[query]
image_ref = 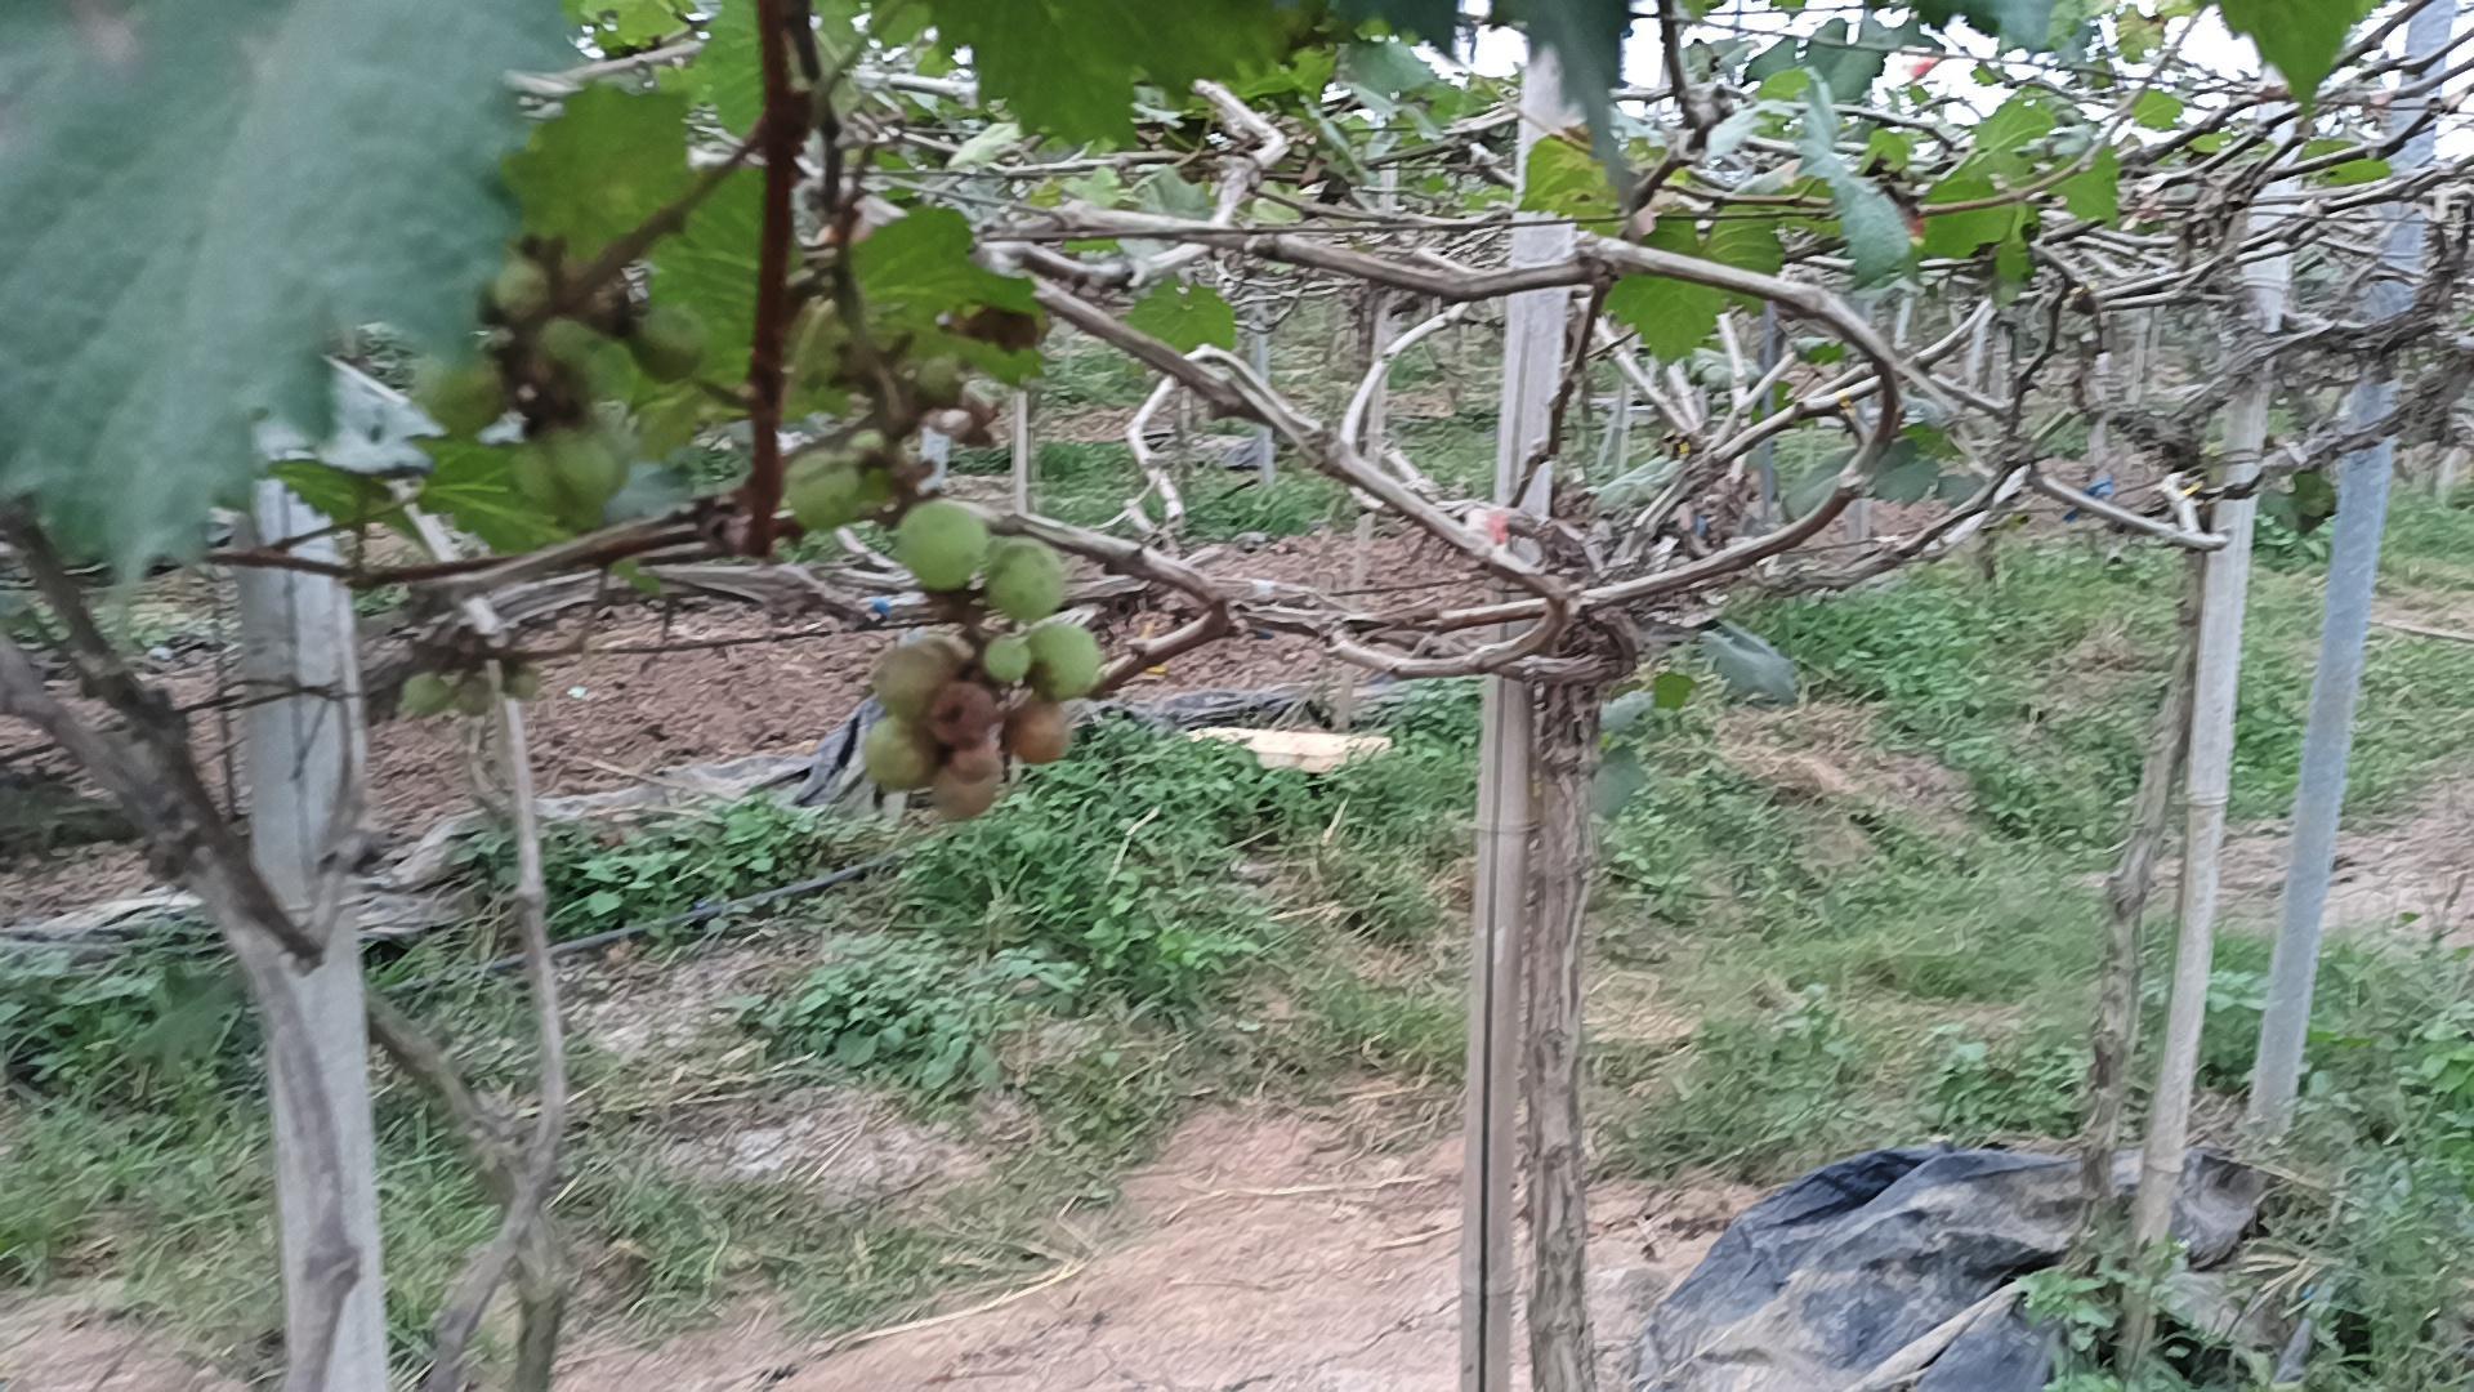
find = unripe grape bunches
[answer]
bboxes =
[398,657,544,720]
[781,424,1106,817]
[419,251,714,530]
